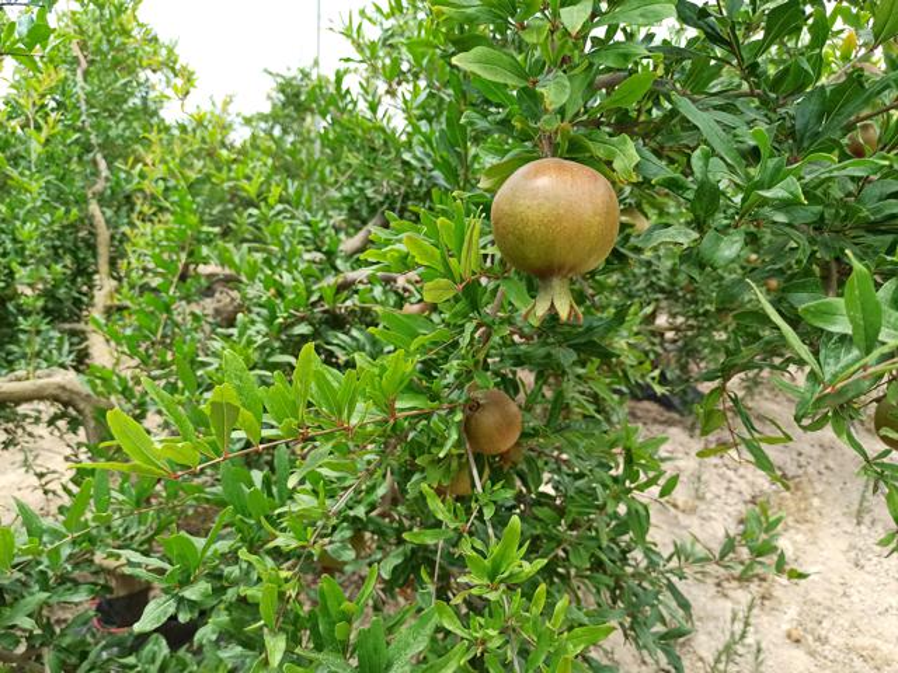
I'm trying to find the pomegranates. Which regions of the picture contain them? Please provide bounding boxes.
[490,157,620,327]
[846,123,877,158]
[435,468,473,496]
[463,388,528,475]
